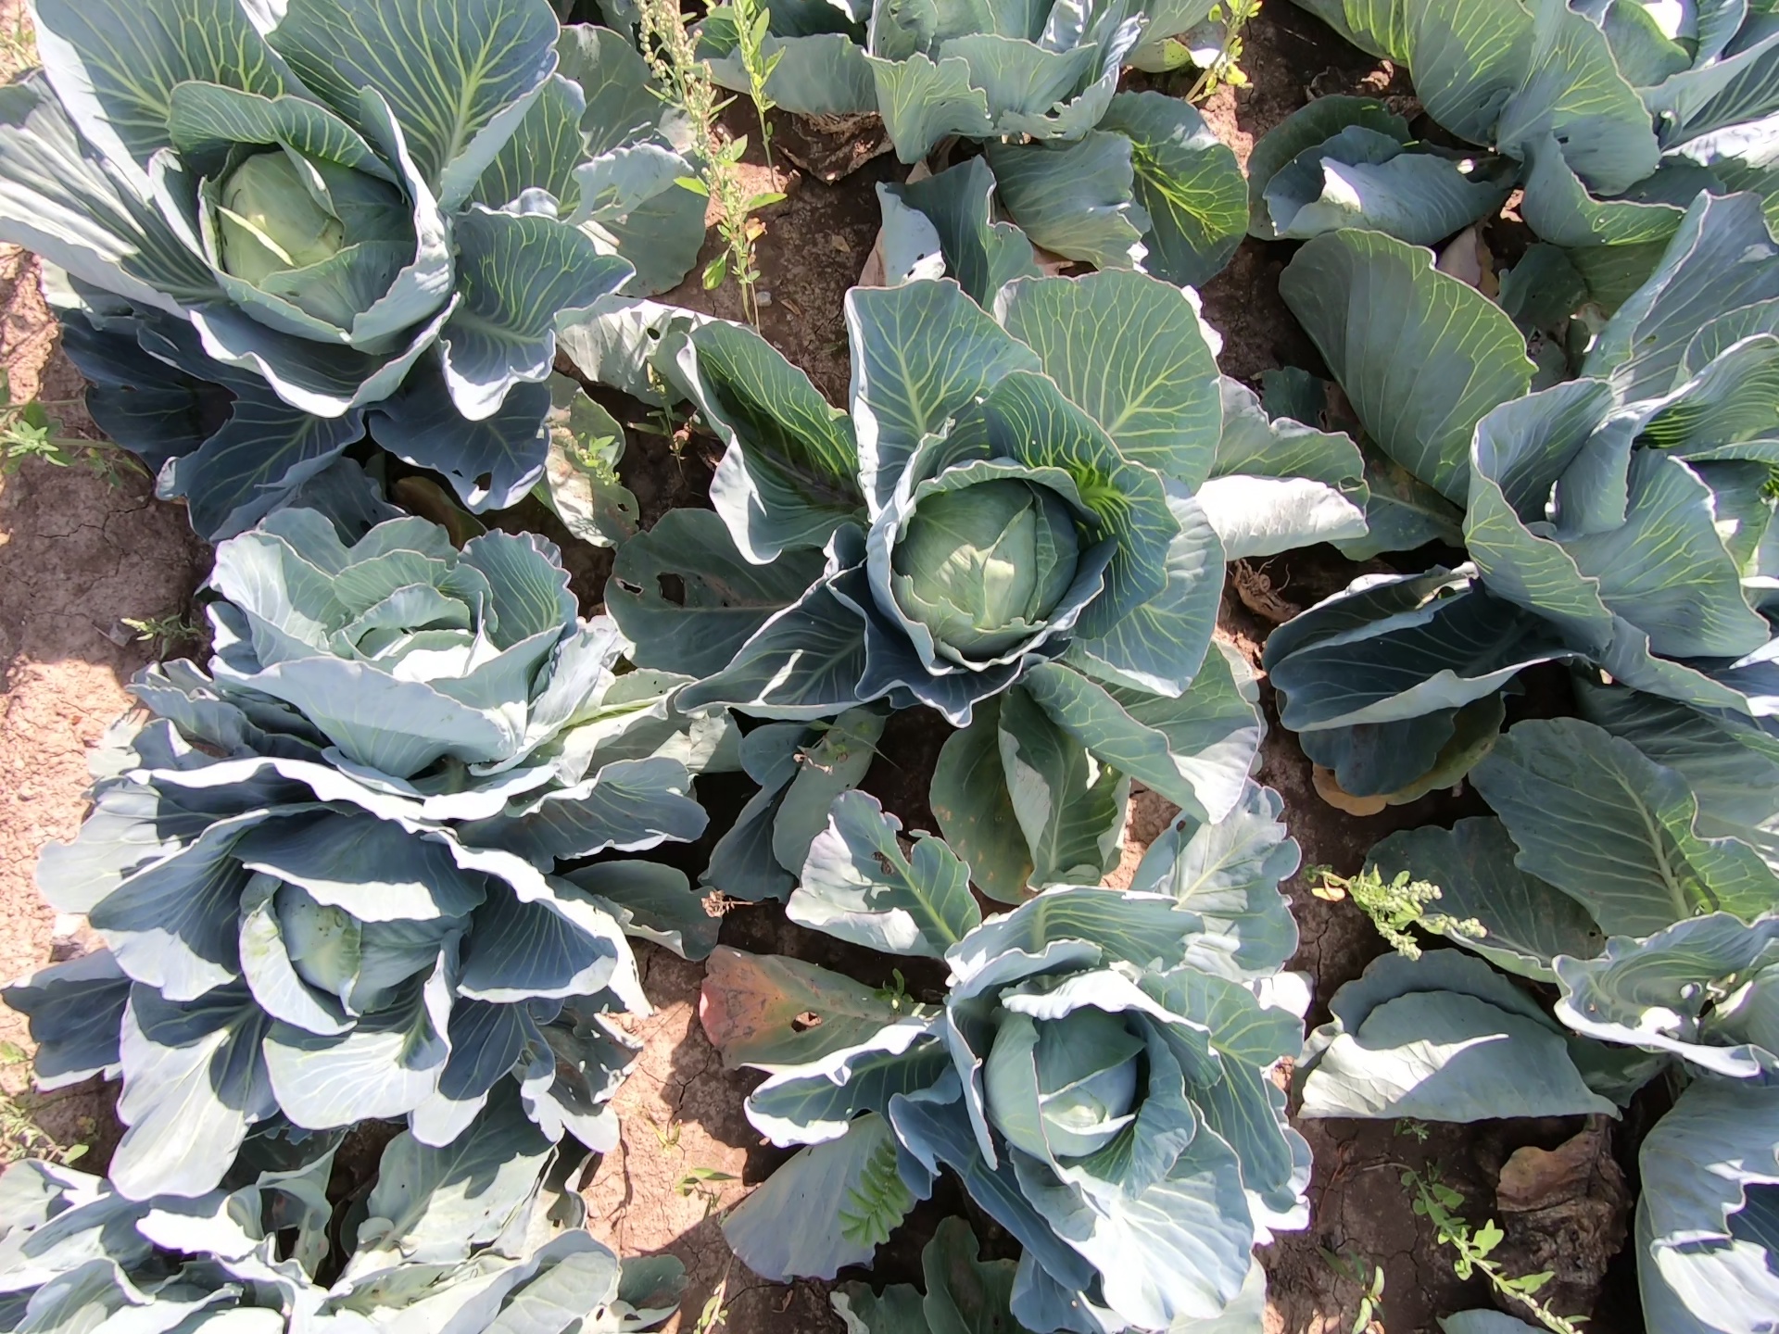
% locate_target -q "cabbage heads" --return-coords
[343,618,529,759]
[1584,5,1722,114]
[214,145,408,337]
[985,1000,1140,1161]
[274,826,469,999]
[897,464,1087,659]
[1621,449,1774,642]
